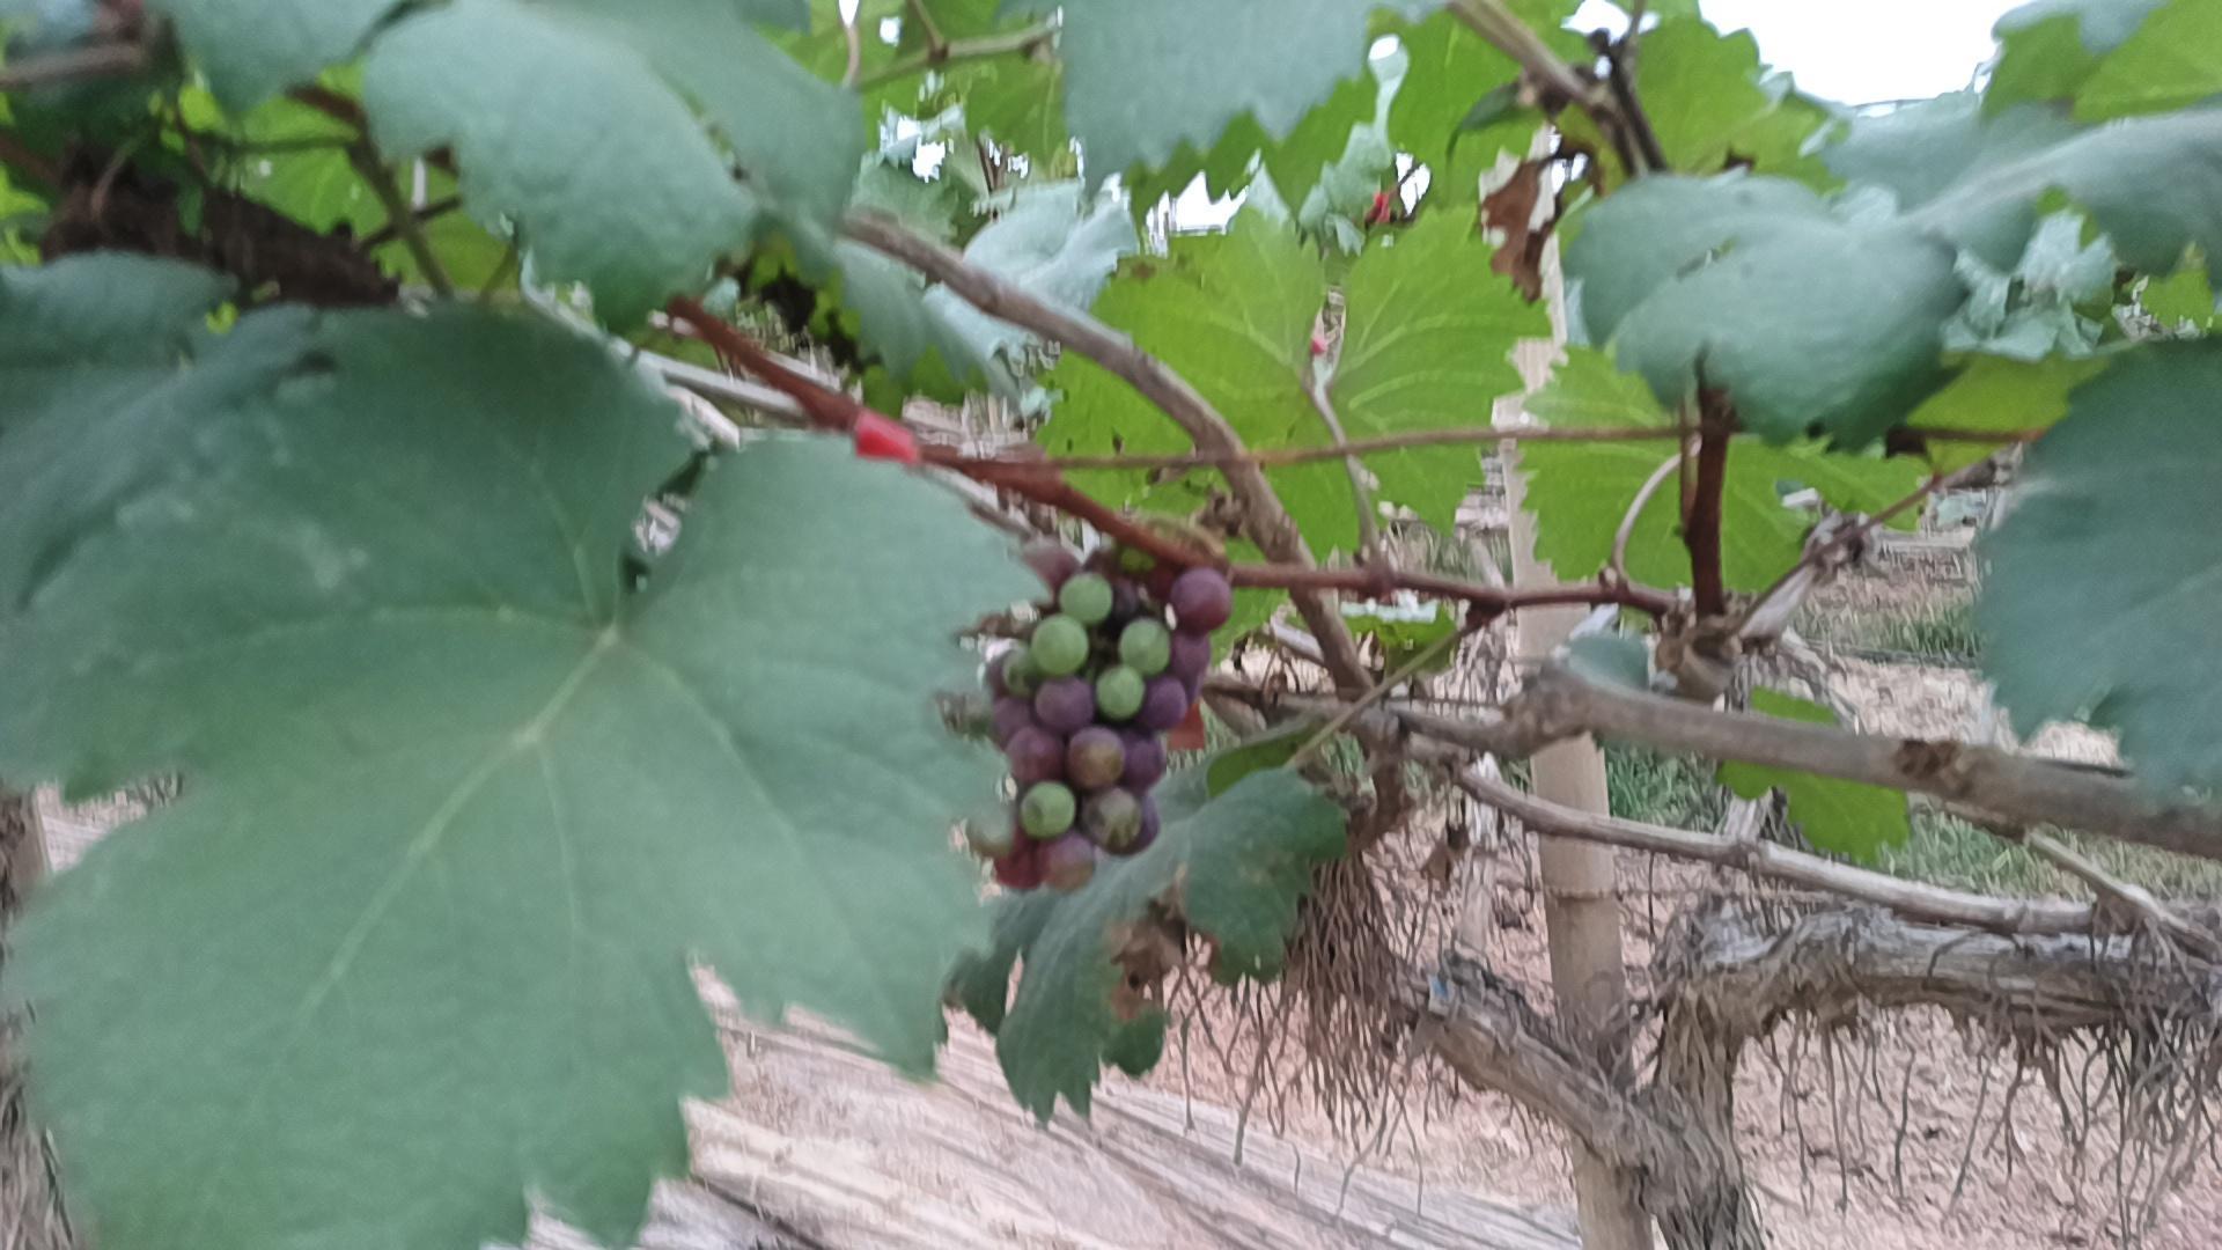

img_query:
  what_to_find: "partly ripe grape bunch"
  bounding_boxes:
[947,538,1231,887]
